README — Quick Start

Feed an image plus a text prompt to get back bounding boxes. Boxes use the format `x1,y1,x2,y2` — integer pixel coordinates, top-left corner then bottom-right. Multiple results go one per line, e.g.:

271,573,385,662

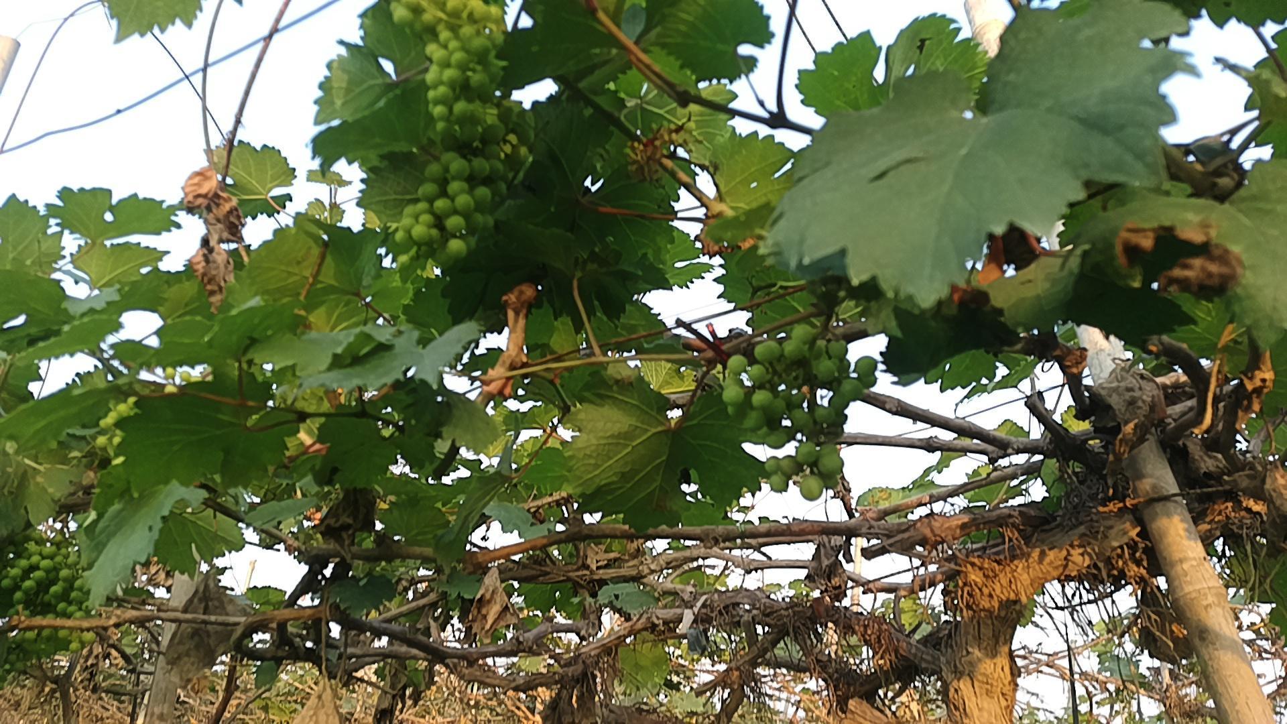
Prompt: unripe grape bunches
391,0,529,267
0,529,93,684
725,324,877,501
